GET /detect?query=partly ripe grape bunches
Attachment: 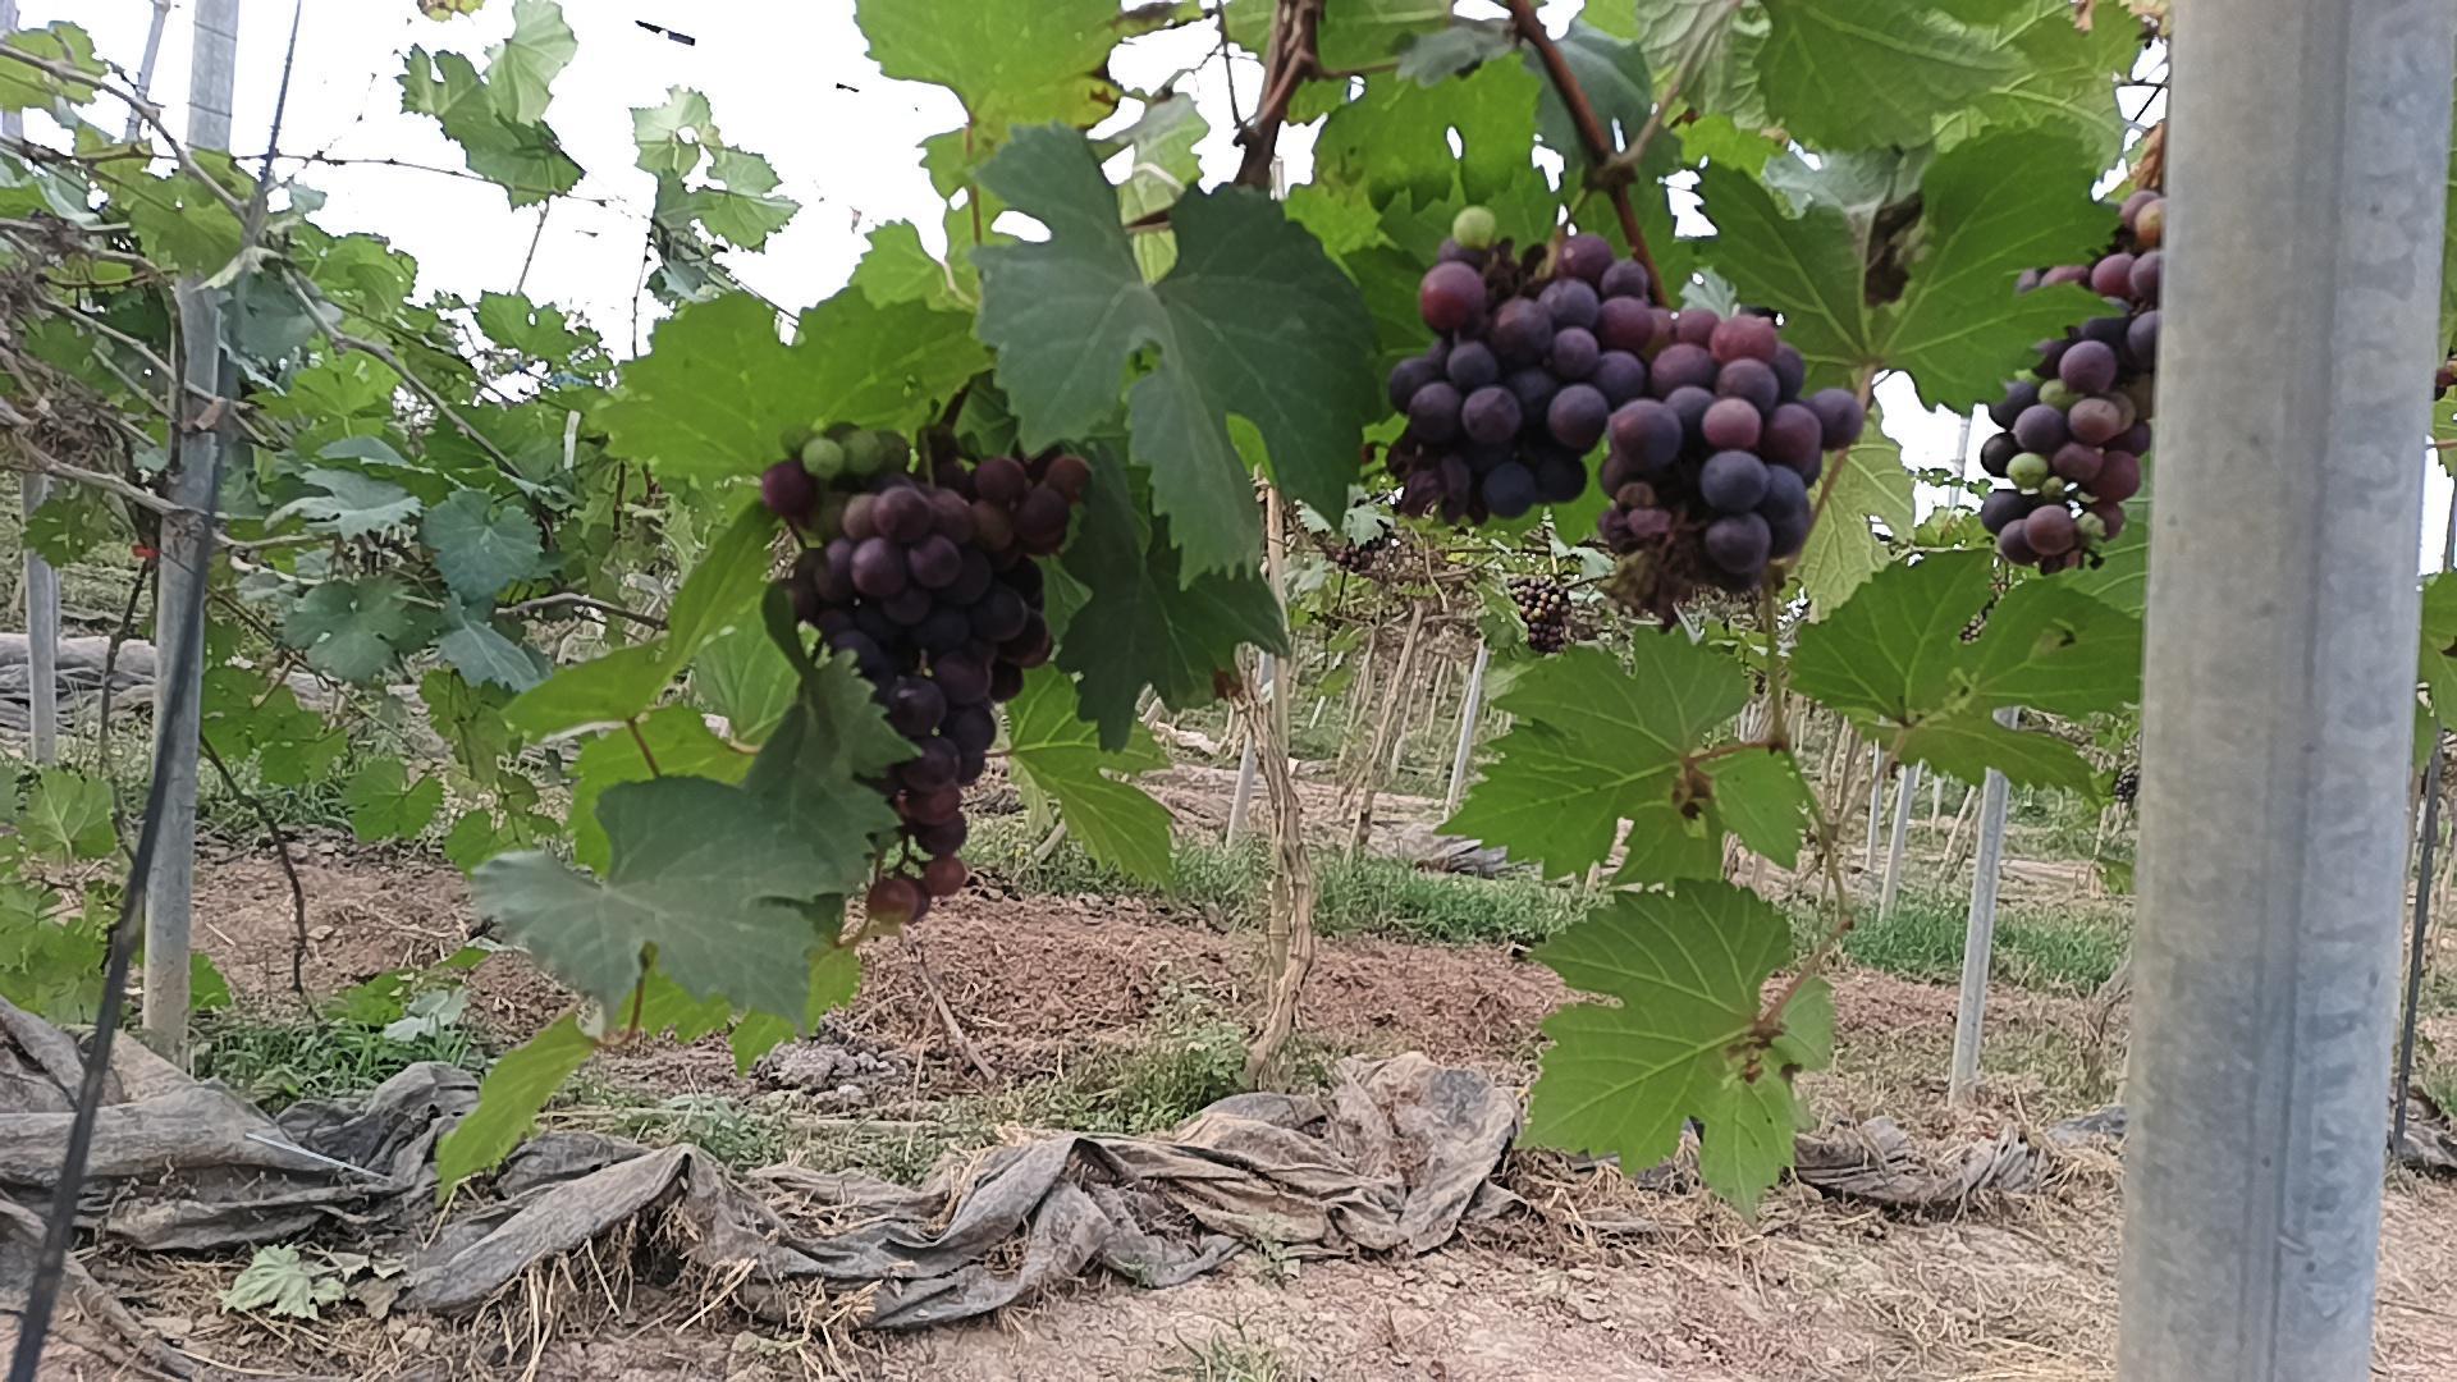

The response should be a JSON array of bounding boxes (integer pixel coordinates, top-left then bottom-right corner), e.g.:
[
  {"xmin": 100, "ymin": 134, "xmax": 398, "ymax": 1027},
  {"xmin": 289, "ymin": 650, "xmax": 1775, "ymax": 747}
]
[
  {"xmin": 1388, "ymin": 203, "xmax": 1866, "ymax": 589},
  {"xmin": 1509, "ymin": 573, "xmax": 1573, "ymax": 653},
  {"xmin": 759, "ymin": 418, "xmax": 1090, "ymax": 928},
  {"xmin": 1980, "ymin": 188, "xmax": 2169, "ymax": 569}
]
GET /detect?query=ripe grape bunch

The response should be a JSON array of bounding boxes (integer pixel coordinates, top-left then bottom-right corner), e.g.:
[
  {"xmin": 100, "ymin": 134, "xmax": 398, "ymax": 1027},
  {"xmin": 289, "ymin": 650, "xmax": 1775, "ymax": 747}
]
[{"xmin": 1337, "ymin": 520, "xmax": 1390, "ymax": 572}]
